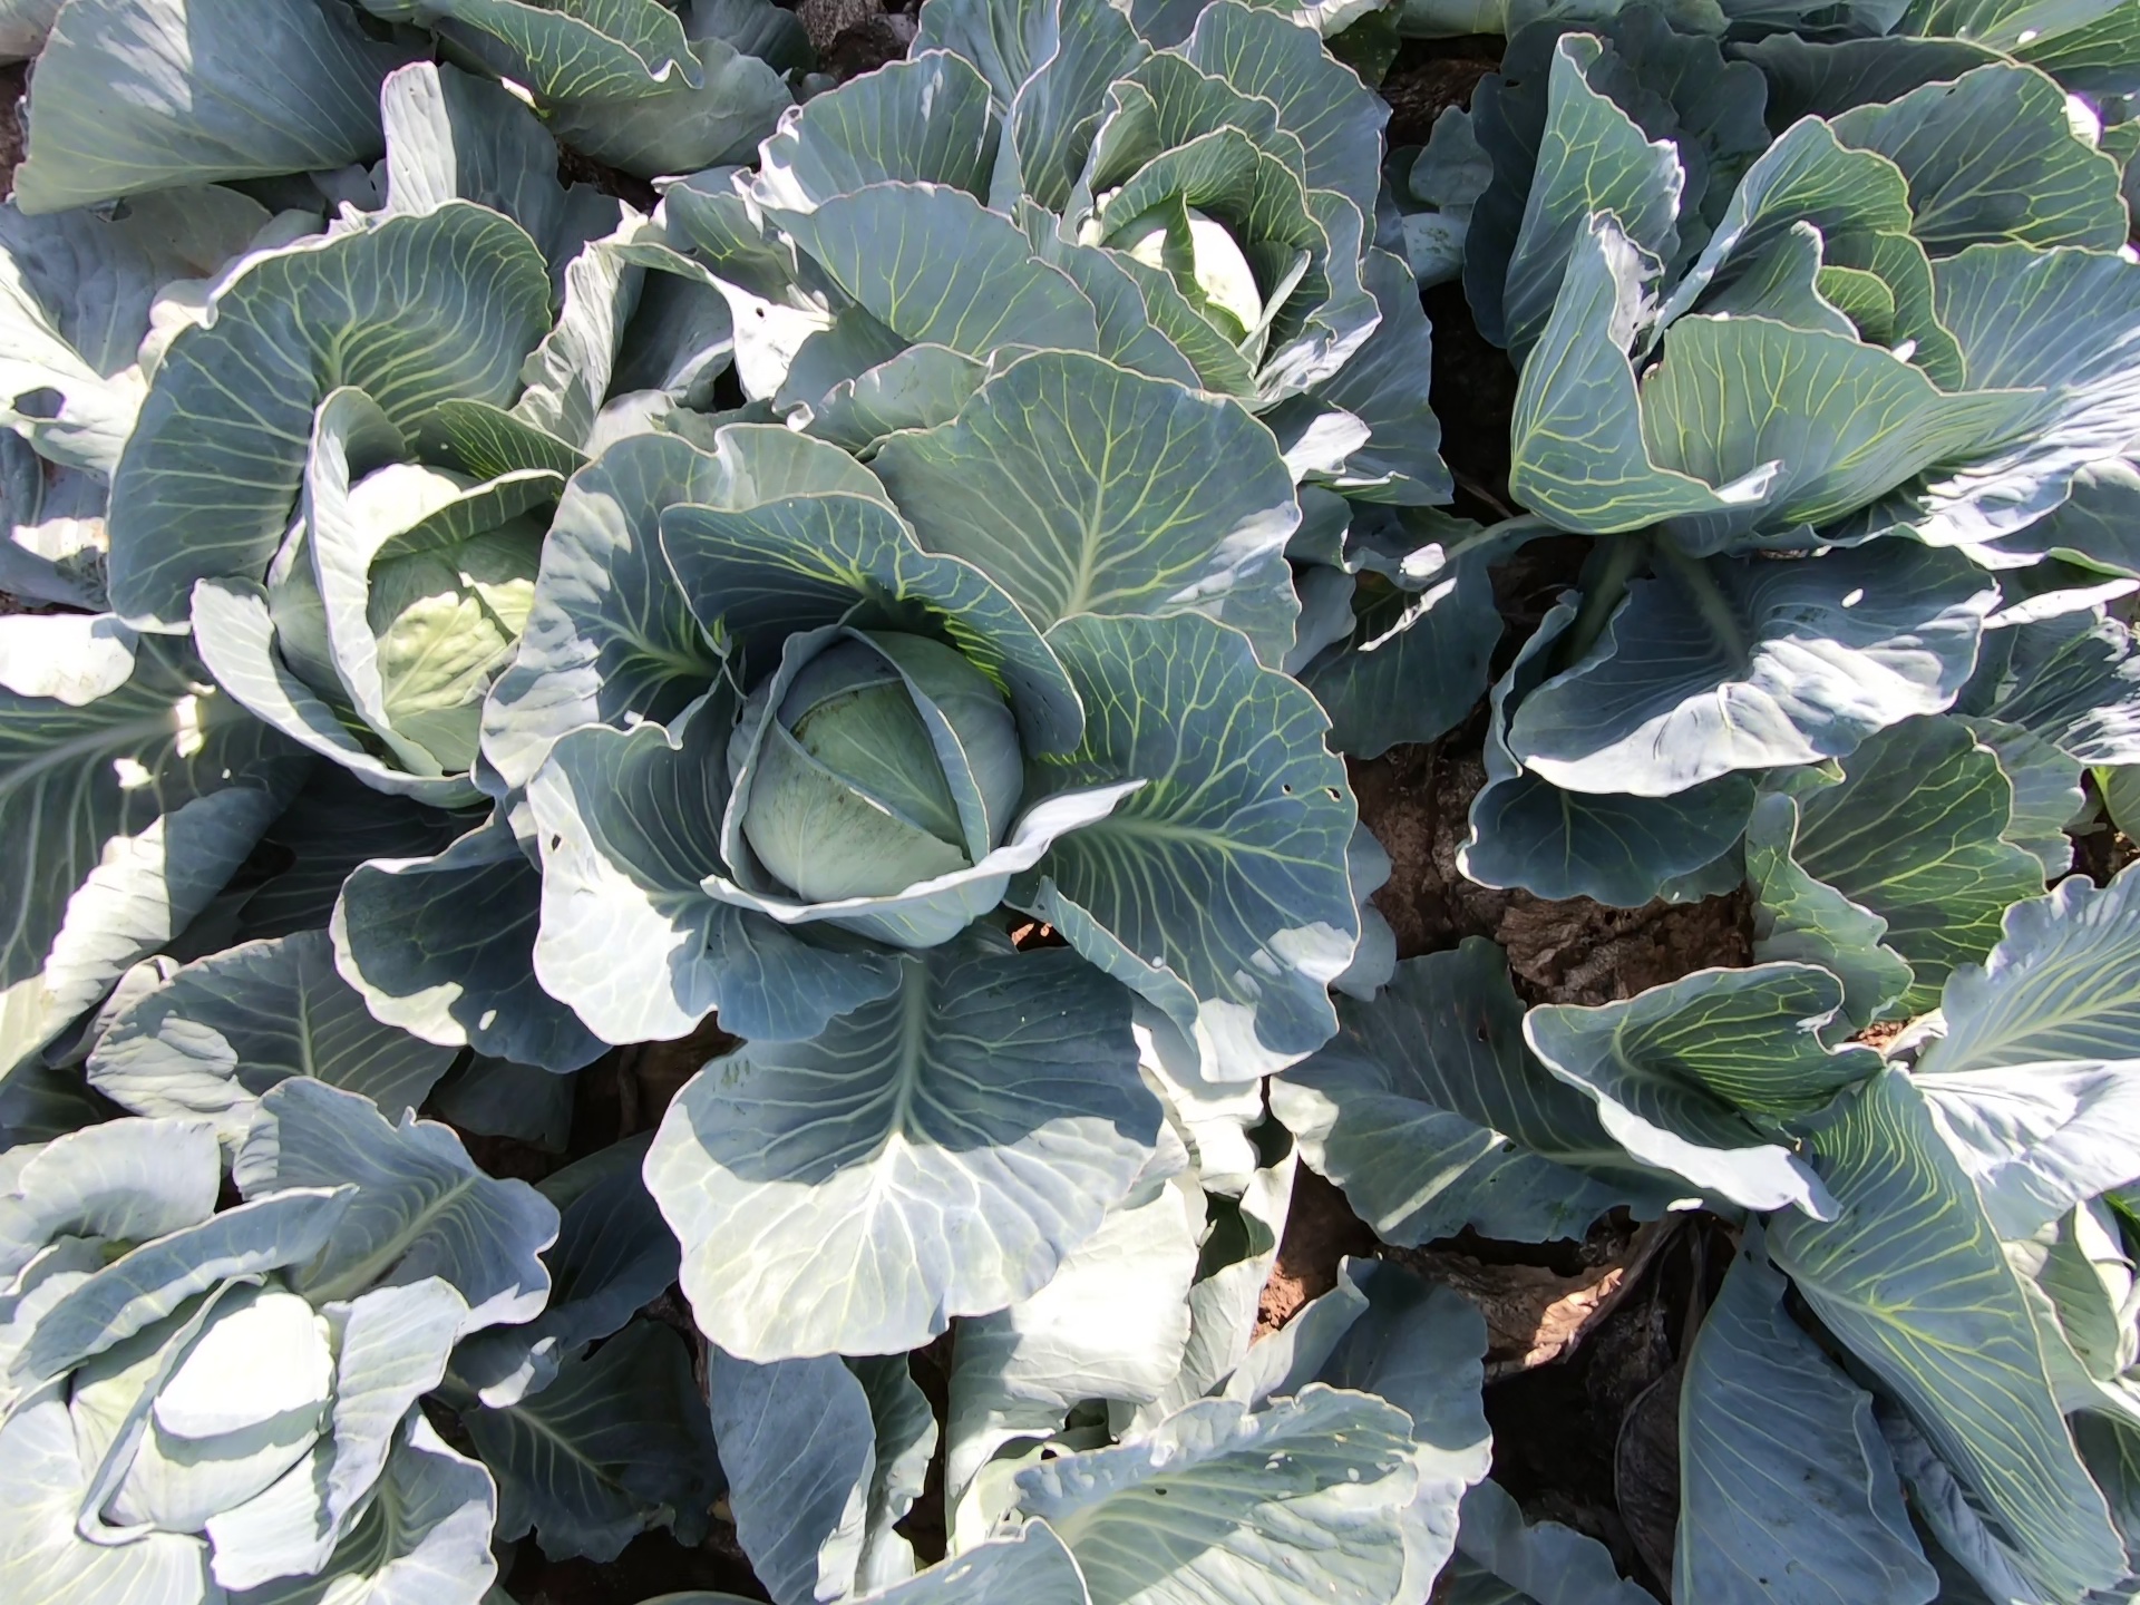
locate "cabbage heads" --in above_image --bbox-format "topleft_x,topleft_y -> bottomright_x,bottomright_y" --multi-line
70,1274 -> 331,1538
284,456 -> 591,760
735,629 -> 1016,909
1898,1140 -> 2131,1374
1097,200 -> 1266,398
